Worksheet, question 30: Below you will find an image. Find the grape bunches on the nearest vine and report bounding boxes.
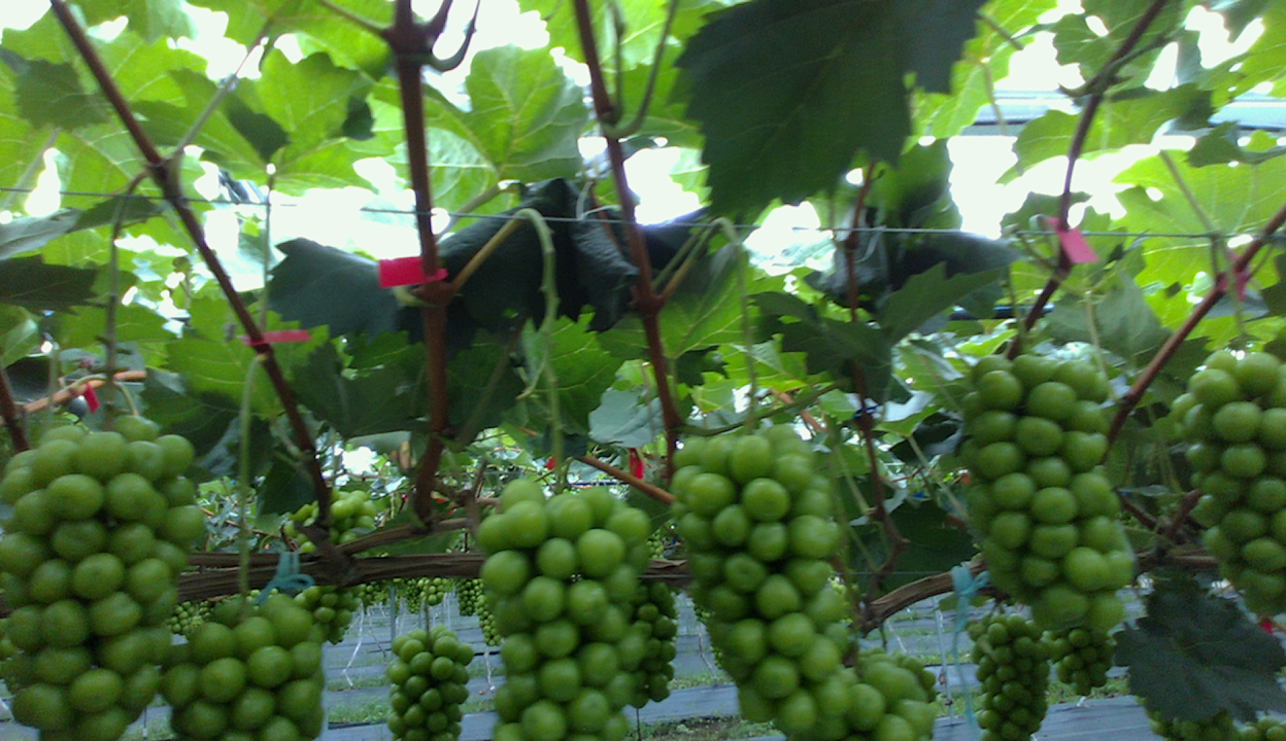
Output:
[672,426,851,733]
[162,593,328,740]
[1172,350,1285,616]
[801,652,935,740]
[0,415,208,740]
[473,480,652,740]
[959,352,1133,632]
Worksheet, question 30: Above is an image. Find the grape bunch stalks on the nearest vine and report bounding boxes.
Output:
[238,361,256,622]
[451,208,563,493]
[662,216,757,432]
[1008,281,1028,350]
[836,561,865,680]
[90,195,132,430]
[1221,238,1249,353]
